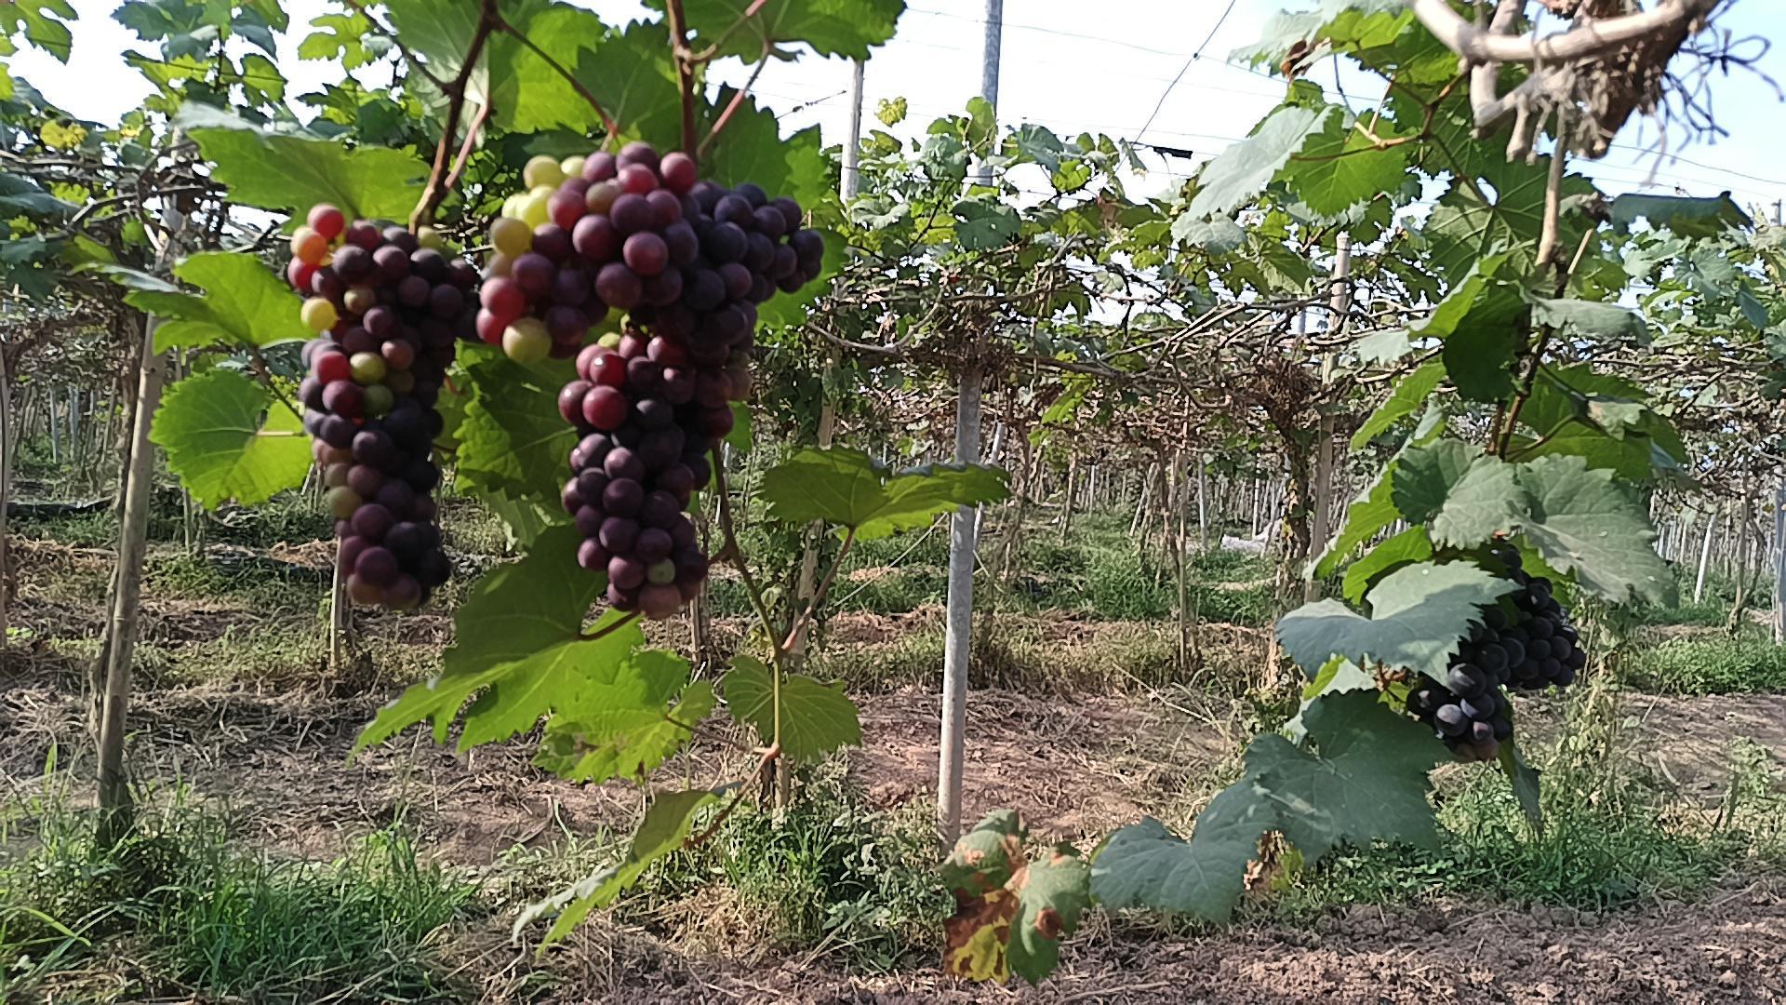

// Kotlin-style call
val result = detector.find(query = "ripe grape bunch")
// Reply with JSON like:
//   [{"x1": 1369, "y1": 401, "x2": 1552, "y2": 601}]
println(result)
[{"x1": 1404, "y1": 540, "x2": 1585, "y2": 762}]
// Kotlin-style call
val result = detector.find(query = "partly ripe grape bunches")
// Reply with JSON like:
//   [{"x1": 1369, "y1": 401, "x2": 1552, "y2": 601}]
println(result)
[
  {"x1": 475, "y1": 141, "x2": 824, "y2": 619},
  {"x1": 287, "y1": 203, "x2": 485, "y2": 608}
]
